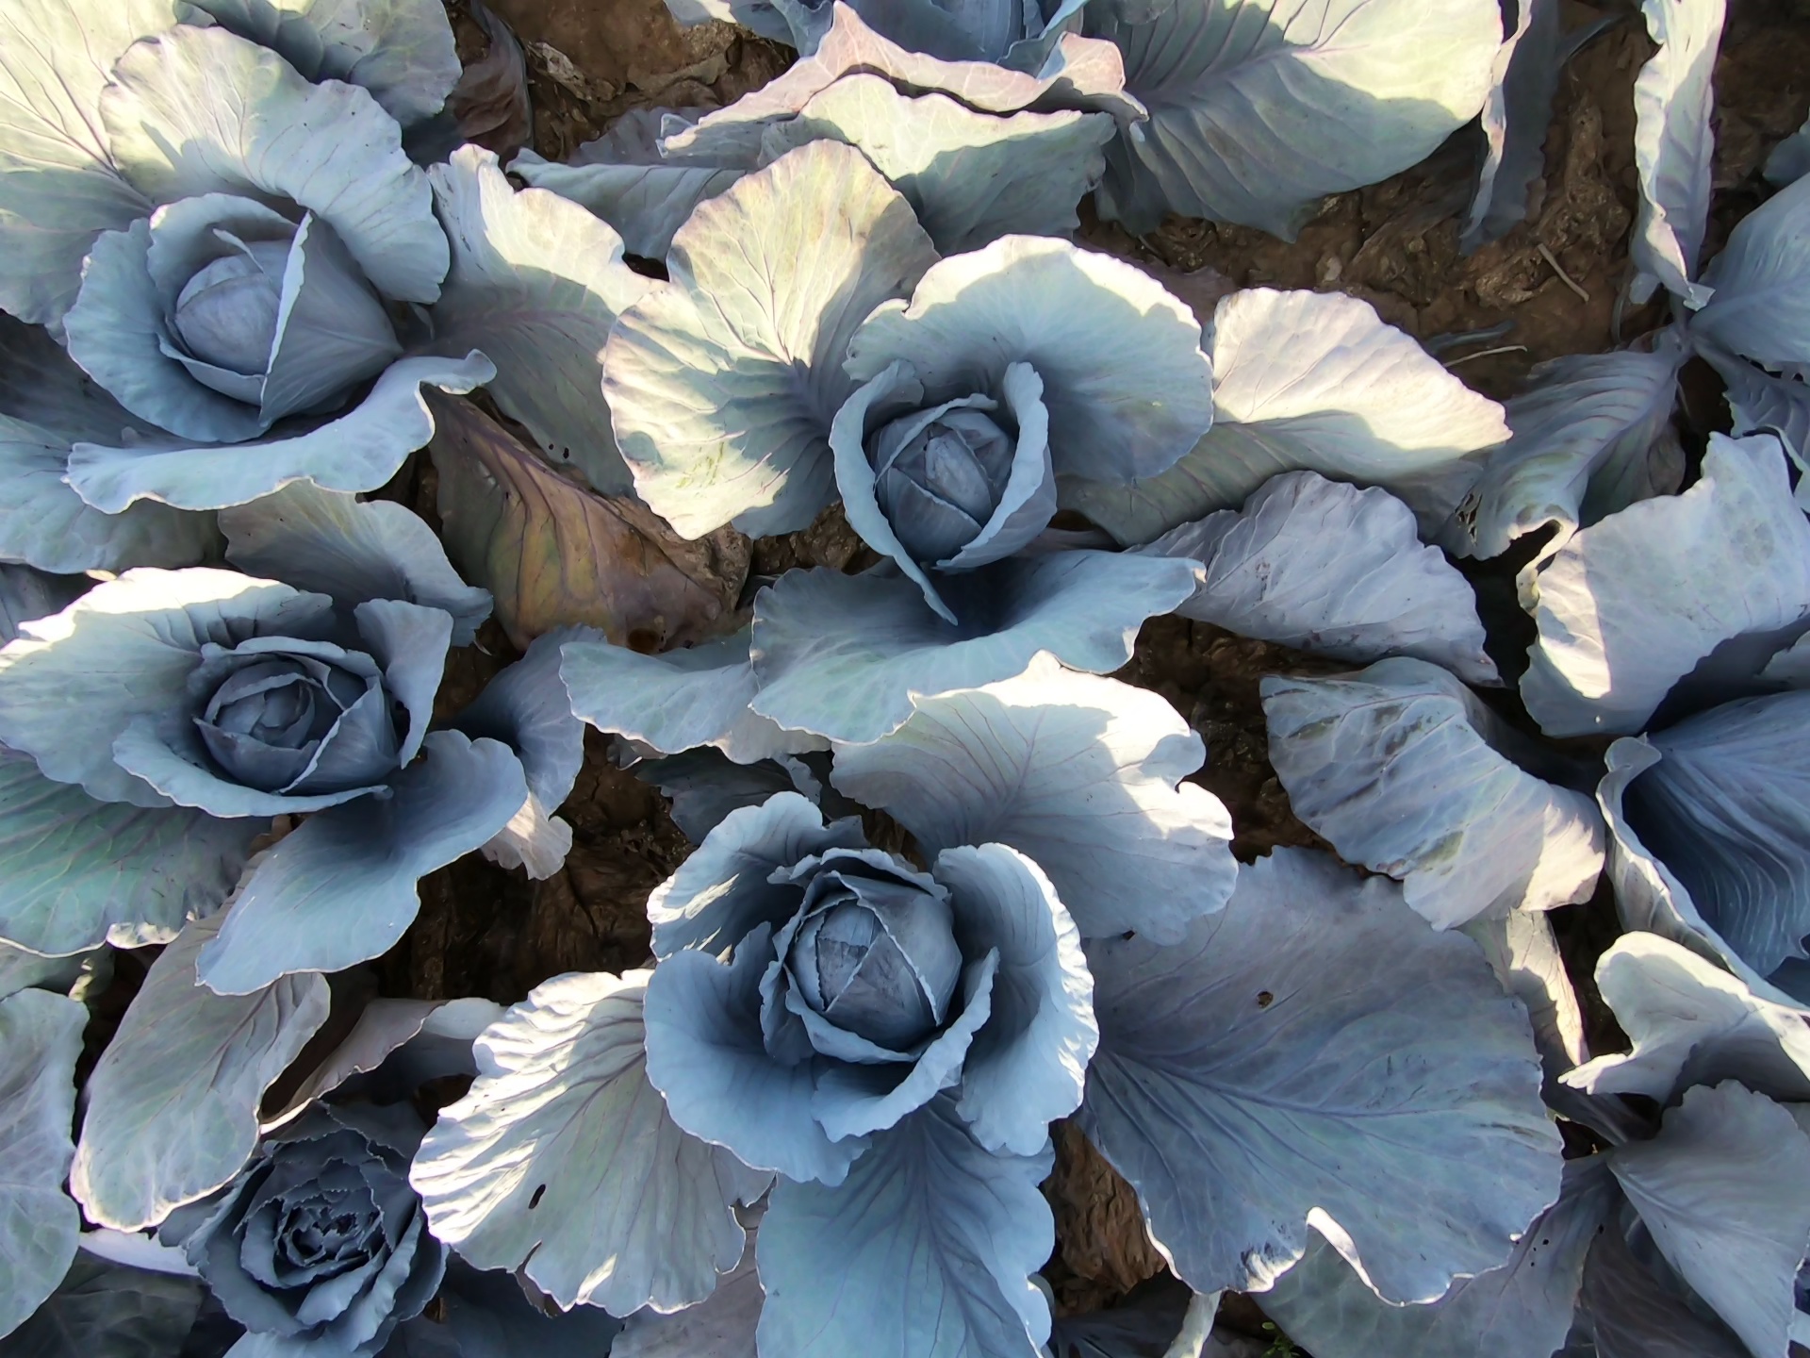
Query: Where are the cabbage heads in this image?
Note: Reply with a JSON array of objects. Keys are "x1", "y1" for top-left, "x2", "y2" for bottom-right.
[
  {"x1": 282, "y1": 1162, "x2": 396, "y2": 1265},
  {"x1": 203, "y1": 655, "x2": 378, "y2": 788},
  {"x1": 871, "y1": 411, "x2": 1022, "y2": 555},
  {"x1": 850, "y1": 5, "x2": 1041, "y2": 87},
  {"x1": 792, "y1": 884, "x2": 952, "y2": 1039},
  {"x1": 168, "y1": 242, "x2": 369, "y2": 396}
]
